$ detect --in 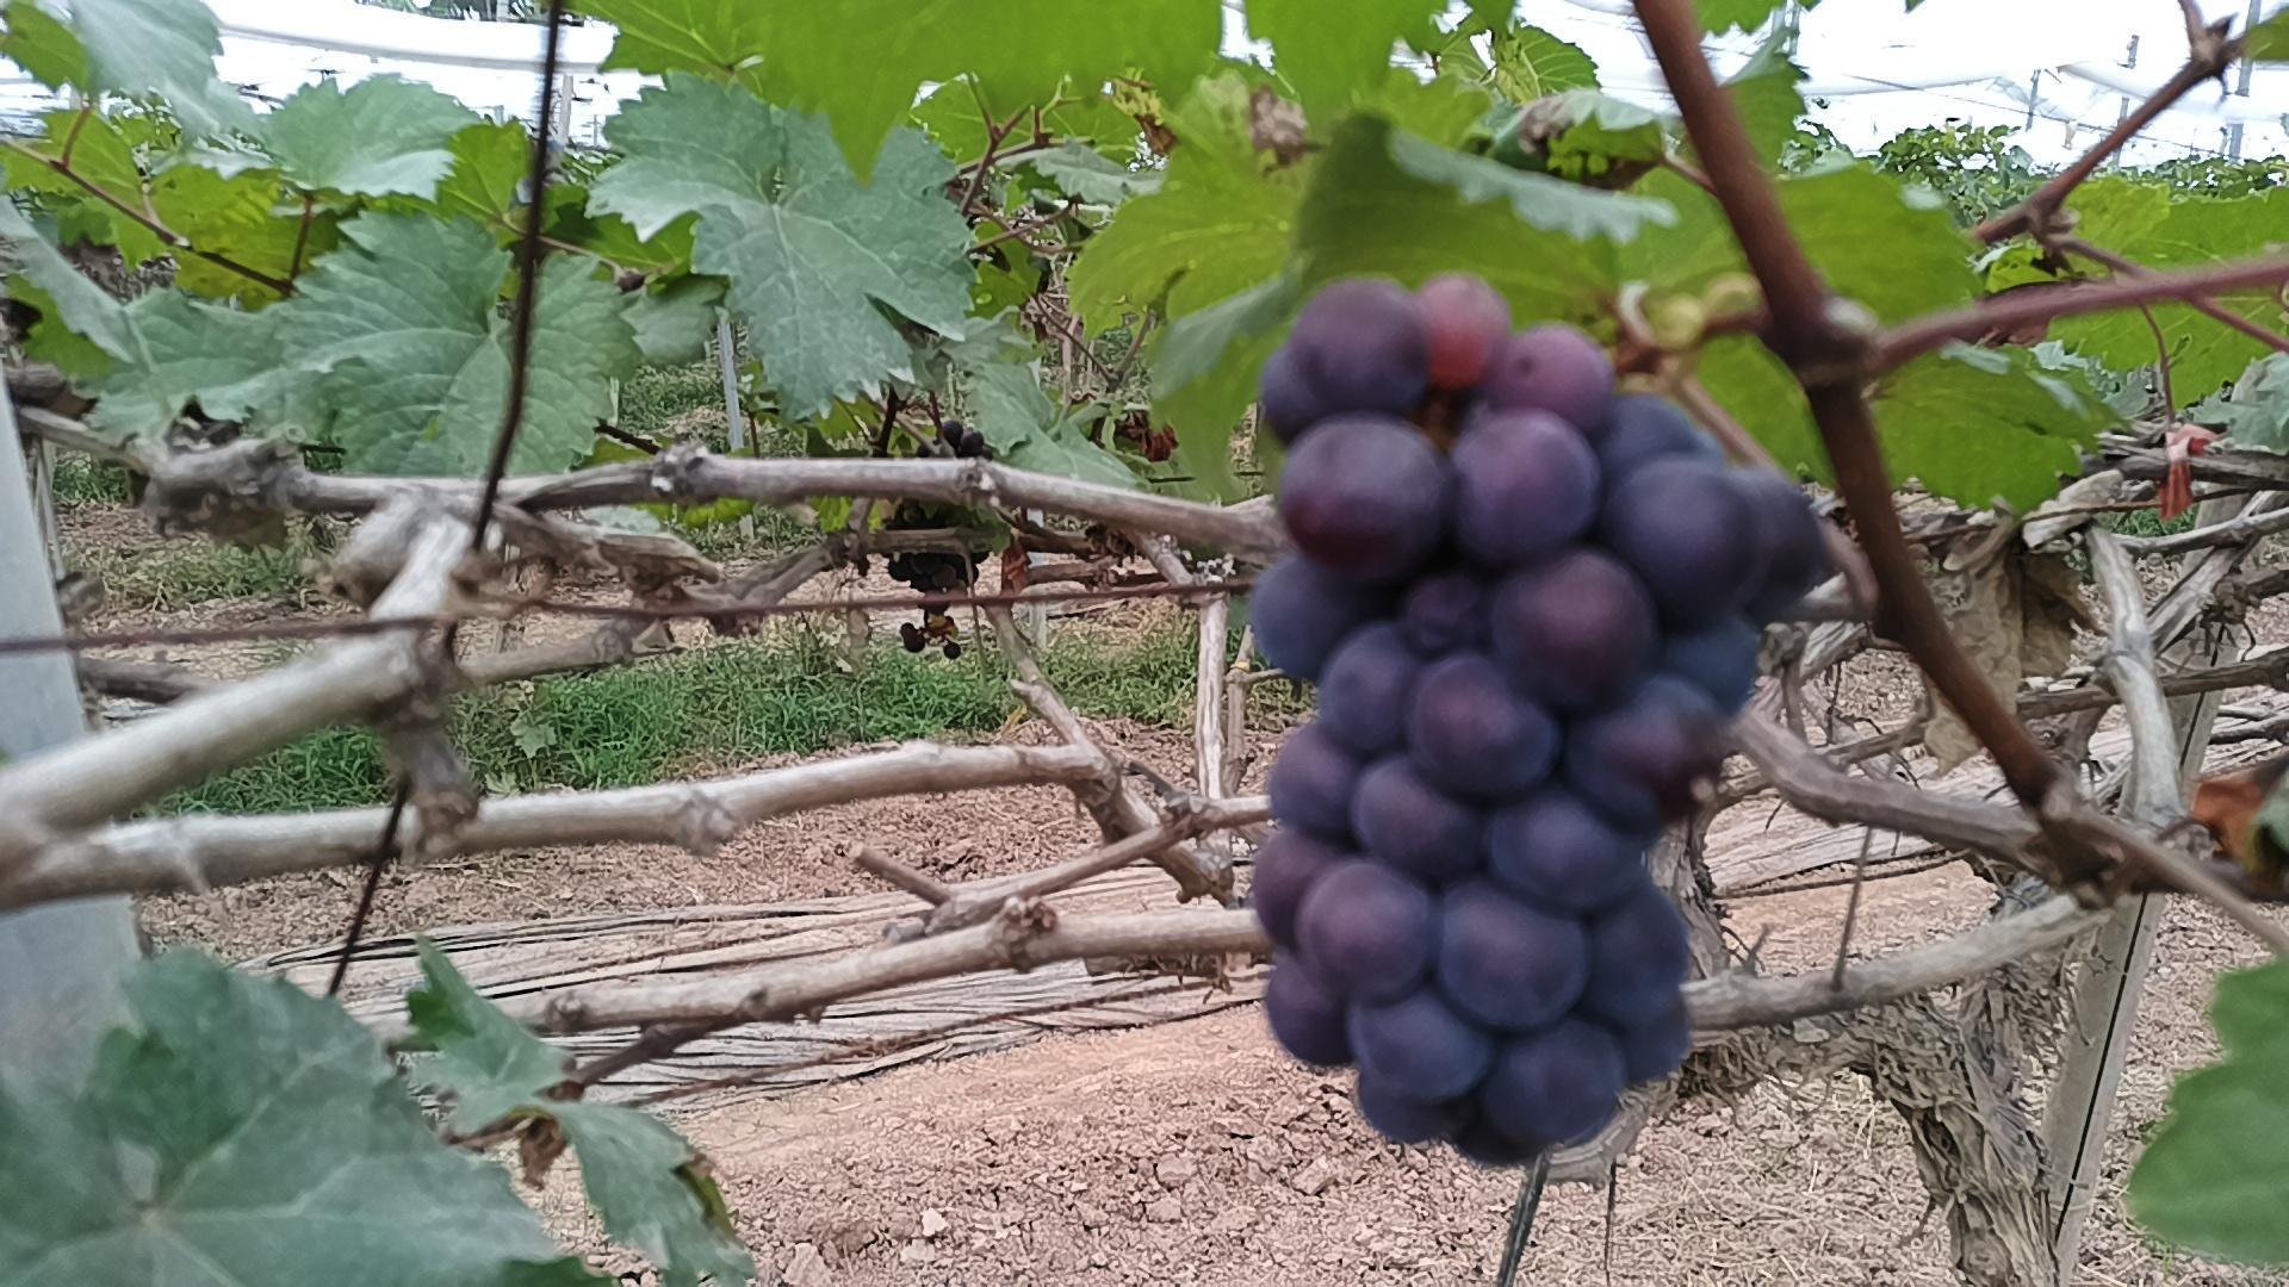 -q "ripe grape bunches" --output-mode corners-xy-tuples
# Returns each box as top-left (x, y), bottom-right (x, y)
(879, 419), (994, 660)
(1251, 279), (1835, 1164)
